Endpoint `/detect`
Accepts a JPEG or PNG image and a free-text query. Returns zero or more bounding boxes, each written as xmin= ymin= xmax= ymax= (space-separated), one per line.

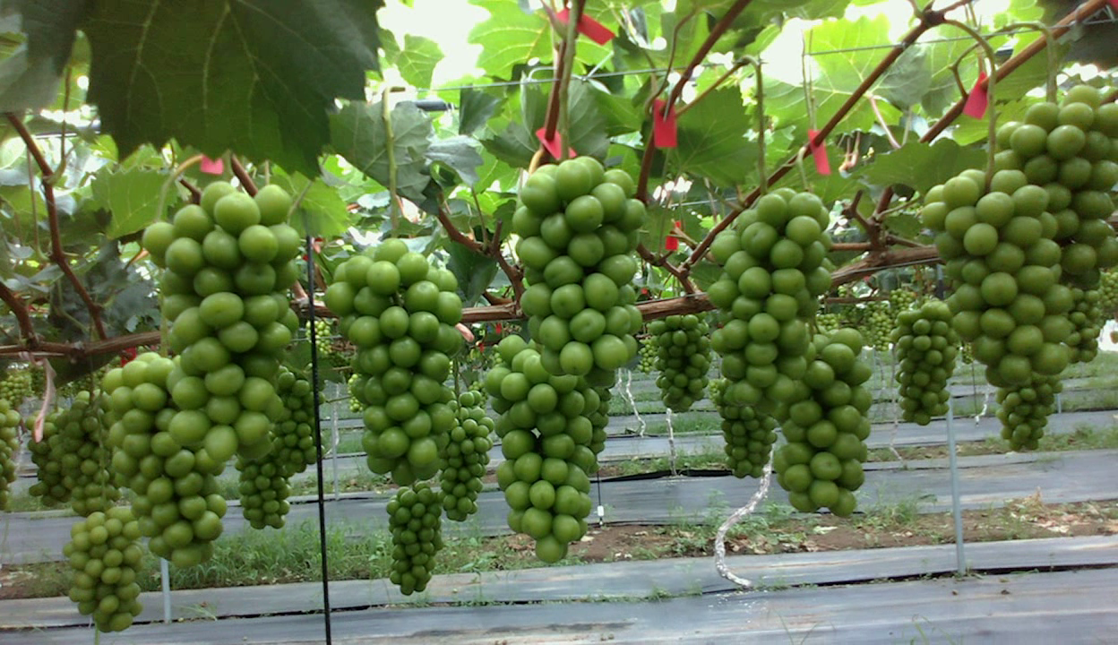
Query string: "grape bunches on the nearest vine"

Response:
xmin=323 ymin=237 xmax=461 ymax=486
xmin=922 ymin=168 xmax=1074 ymax=389
xmin=142 ymin=180 xmax=301 ymax=461
xmin=100 ymin=352 xmax=228 ymax=570
xmin=771 ymin=328 xmax=873 ymax=517
xmin=709 ymin=187 xmax=836 ymax=415
xmin=994 ymin=82 xmax=1117 ymax=287
xmin=483 ymin=334 xmax=612 ymax=564
xmin=512 ymin=156 xmax=646 ymax=388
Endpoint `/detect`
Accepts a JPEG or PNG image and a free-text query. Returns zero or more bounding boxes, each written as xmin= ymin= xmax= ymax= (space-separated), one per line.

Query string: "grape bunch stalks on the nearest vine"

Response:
xmin=946 ymin=19 xmax=996 ymax=194
xmin=221 ymin=149 xmax=243 ymax=193
xmin=557 ymin=0 xmax=579 ymax=162
xmin=159 ymin=268 xmax=168 ymax=357
xmin=998 ymin=20 xmax=1056 ymax=105
xmin=741 ymin=53 xmax=769 ymax=198
xmin=382 ymin=85 xmax=405 ymax=237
